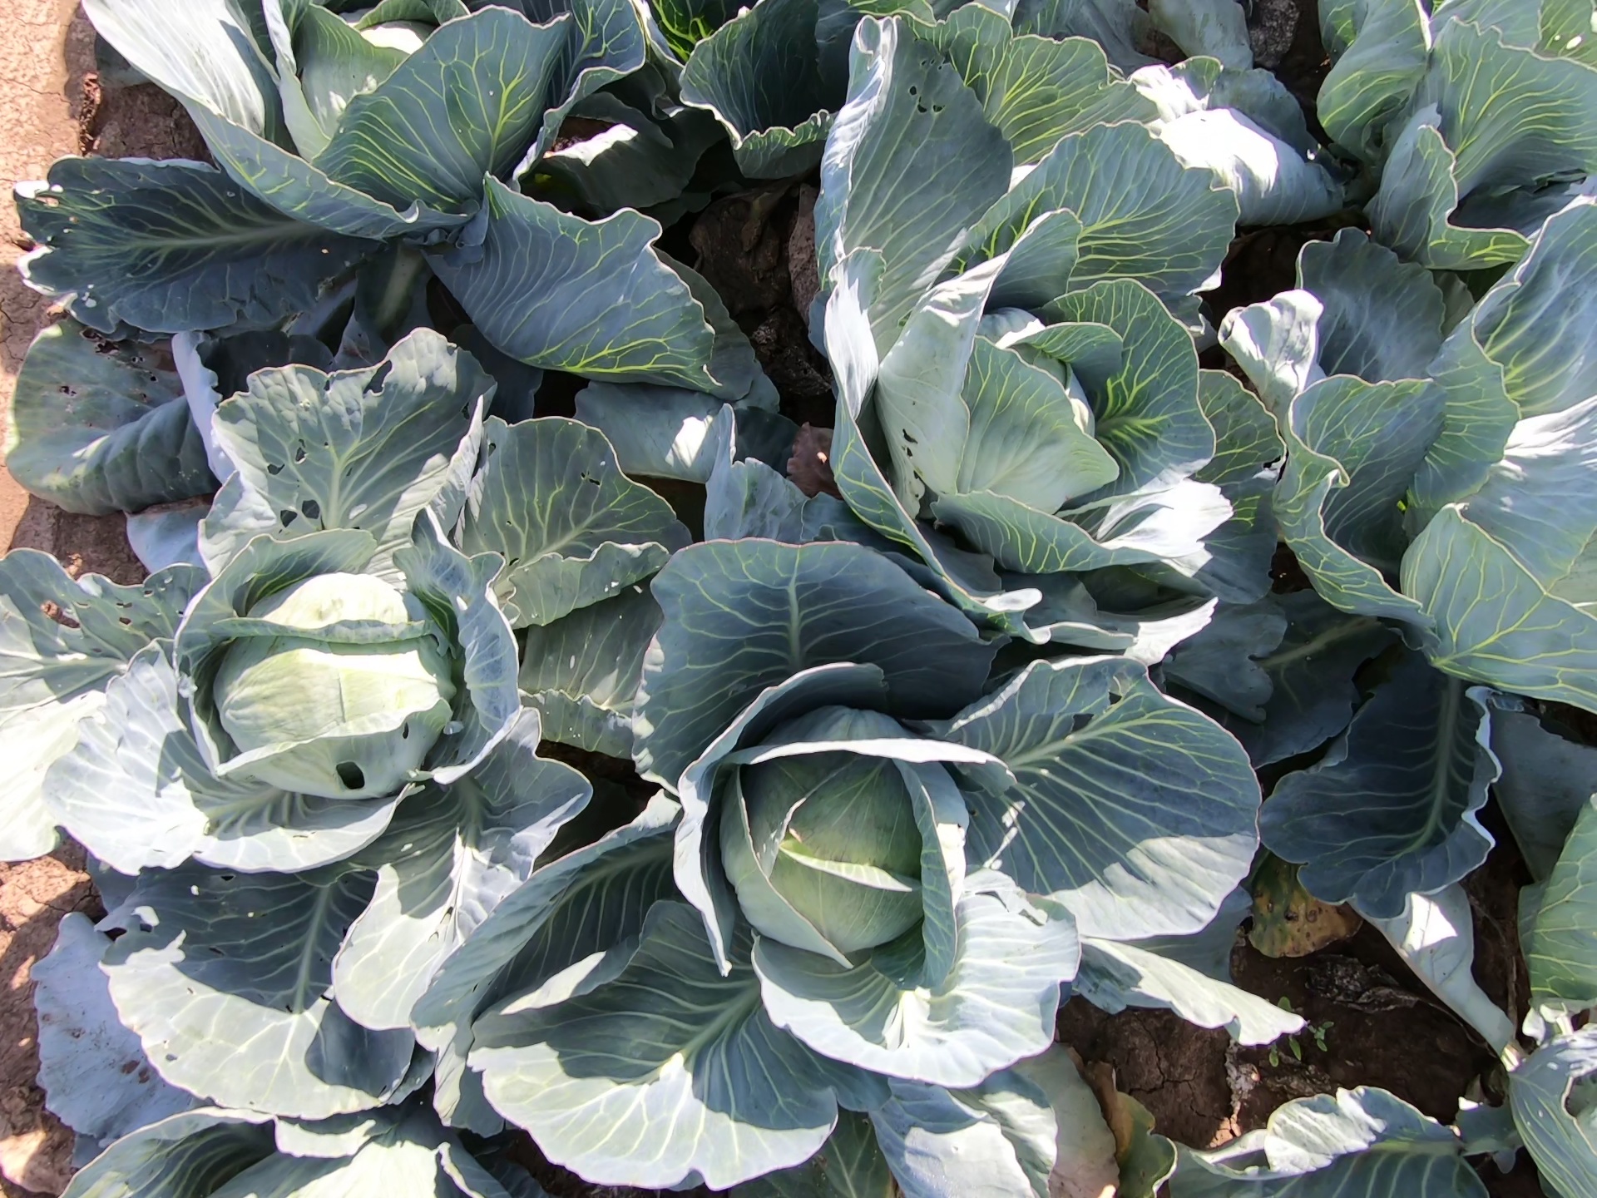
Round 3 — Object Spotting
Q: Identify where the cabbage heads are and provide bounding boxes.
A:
[215,570,456,780]
[949,342,1095,512]
[731,726,954,952]
[297,9,482,181]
